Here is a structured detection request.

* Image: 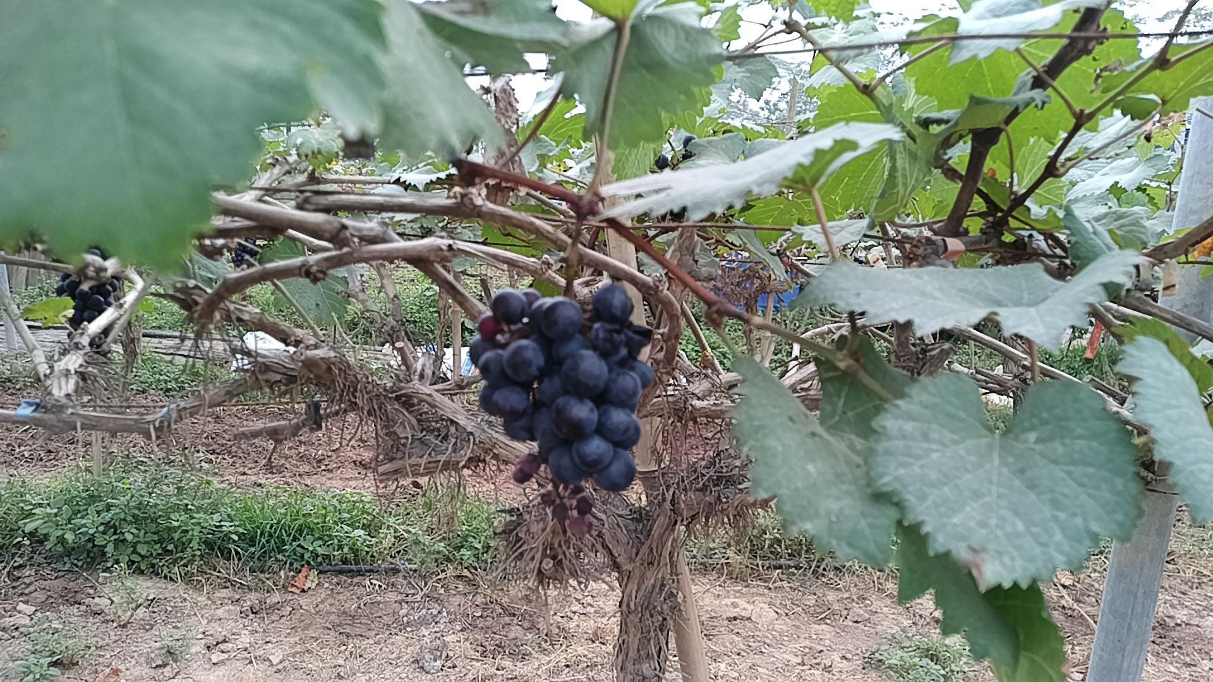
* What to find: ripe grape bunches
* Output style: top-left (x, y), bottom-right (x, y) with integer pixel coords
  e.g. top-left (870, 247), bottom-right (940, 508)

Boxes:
top-left (655, 135), bottom-right (699, 220)
top-left (231, 237), bottom-right (261, 268)
top-left (470, 284), bottom-right (654, 534)
top-left (56, 248), bottom-right (123, 357)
